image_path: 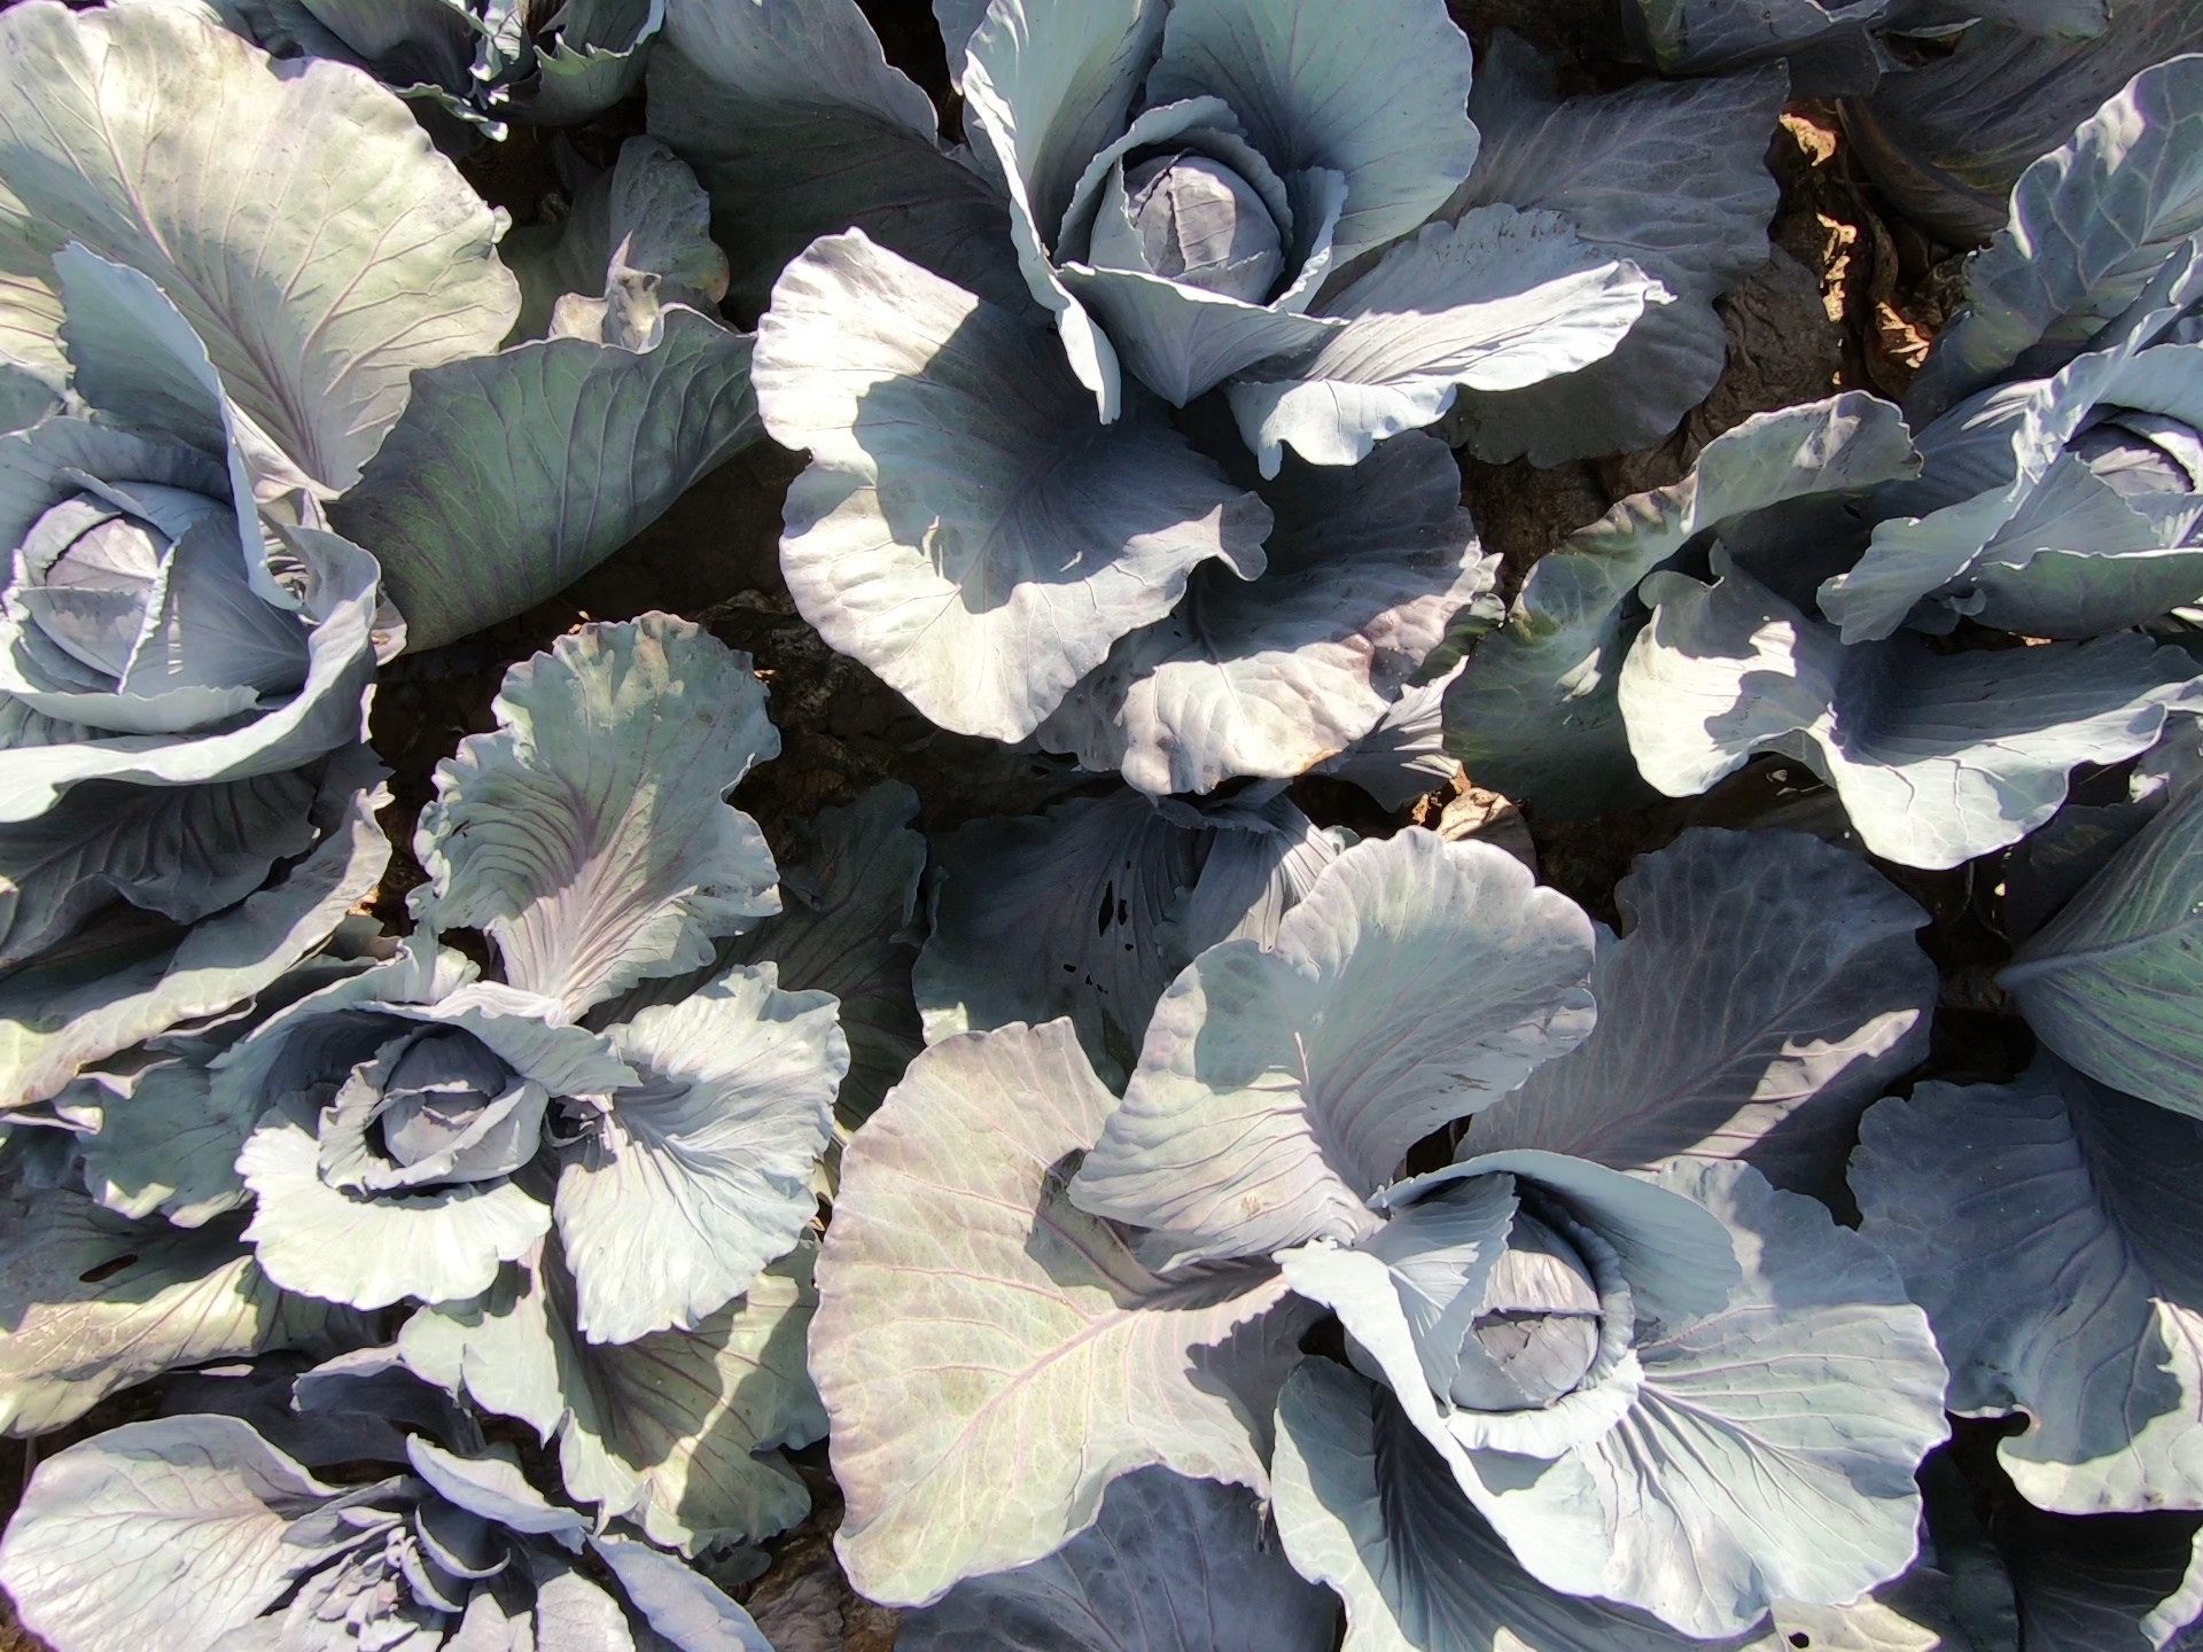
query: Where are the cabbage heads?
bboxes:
[1105,159,1282,344]
[24,485,275,678]
[379,1035,526,1171]
[1979,389,2201,585]
[1381,1197,1604,1416]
